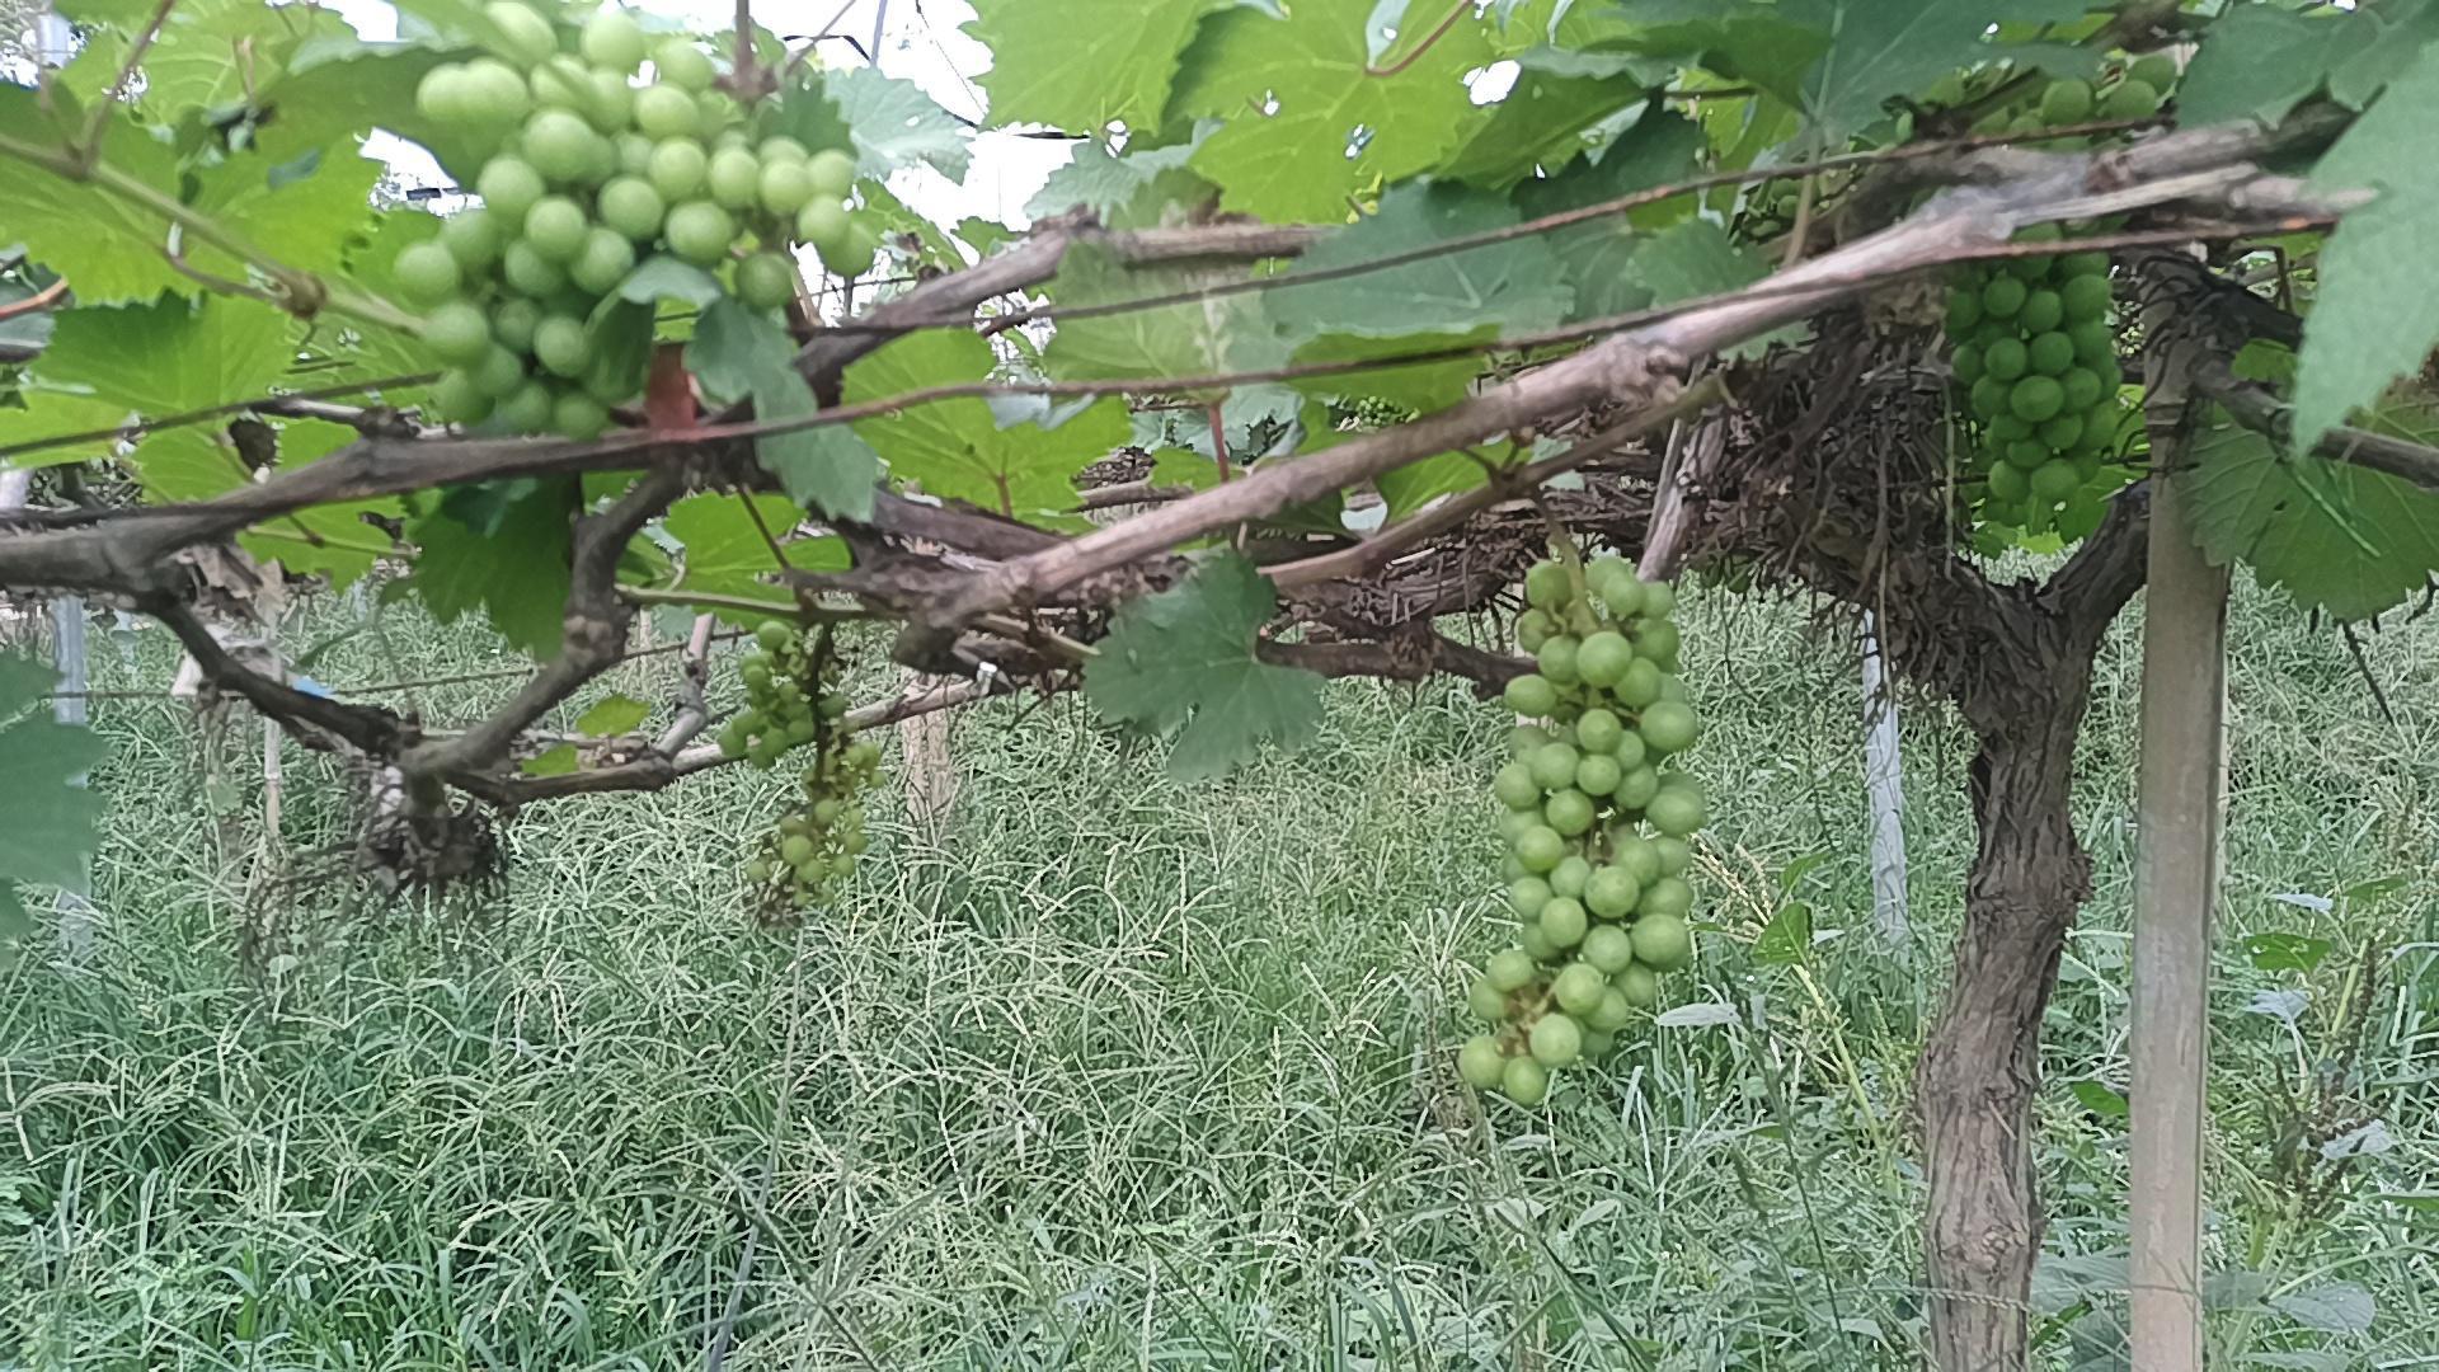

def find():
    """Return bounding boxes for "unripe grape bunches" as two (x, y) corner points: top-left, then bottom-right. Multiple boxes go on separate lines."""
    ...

(1345, 396), (1416, 429)
(1457, 558), (1705, 1103)
(393, 0), (877, 436)
(1946, 55), (2174, 525)
(716, 620), (882, 920)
